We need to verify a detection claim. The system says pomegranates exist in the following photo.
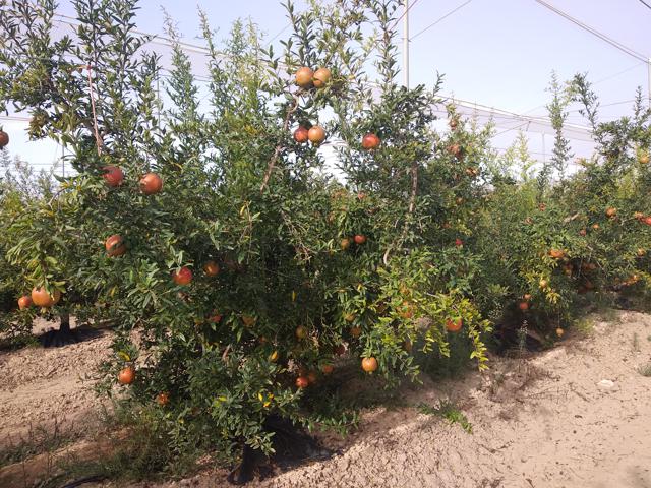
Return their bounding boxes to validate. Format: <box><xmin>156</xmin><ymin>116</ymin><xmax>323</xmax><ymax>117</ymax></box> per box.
<box><xmin>606</xmin><ymin>207</ymin><xmax>617</xmax><ymax>218</ymax></box>
<box><xmin>106</xmin><ymin>234</ymin><xmax>125</xmax><ymax>257</ymax></box>
<box><xmin>103</xmin><ymin>166</ymin><xmax>123</xmax><ymax>187</ymax></box>
<box><xmin>639</xmin><ymin>157</ymin><xmax>648</xmax><ymax>164</ymax></box>
<box><xmin>554</xmin><ymin>326</ymin><xmax>565</xmax><ymax>339</ymax></box>
<box><xmin>550</xmin><ymin>248</ymin><xmax>563</xmax><ymax>259</ymax></box>
<box><xmin>445</xmin><ymin>318</ymin><xmax>462</xmax><ymax>333</ymax></box>
<box><xmin>307</xmin><ymin>372</ymin><xmax>318</xmax><ymax>384</ymax></box>
<box><xmin>294</xmin><ymin>374</ymin><xmax>308</xmax><ymax>391</ymax></box>
<box><xmin>203</xmin><ymin>259</ymin><xmax>221</xmax><ymax>278</ymax></box>
<box><xmin>362</xmin><ymin>134</ymin><xmax>380</xmax><ymax>150</ymax></box>
<box><xmin>322</xmin><ymin>364</ymin><xmax>335</xmax><ymax>376</ymax></box>
<box><xmin>449</xmin><ymin>118</ymin><xmax>459</xmax><ymax>131</ymax></box>
<box><xmin>349</xmin><ymin>327</ymin><xmax>361</xmax><ymax>337</ymax></box>
<box><xmin>295</xmin><ymin>325</ymin><xmax>307</xmax><ymax>342</ymax></box>
<box><xmin>16</xmin><ymin>296</ymin><xmax>33</xmax><ymax>309</ymax></box>
<box><xmin>137</xmin><ymin>171</ymin><xmax>165</xmax><ymax>196</ymax></box>
<box><xmin>293</xmin><ymin>126</ymin><xmax>309</xmax><ymax>143</ymax></box>
<box><xmin>117</xmin><ymin>366</ymin><xmax>135</xmax><ymax>384</ymax></box>
<box><xmin>339</xmin><ymin>237</ymin><xmax>350</xmax><ymax>250</ymax></box>
<box><xmin>520</xmin><ymin>301</ymin><xmax>530</xmax><ymax>311</ymax></box>
<box><xmin>295</xmin><ymin>66</ymin><xmax>314</xmax><ymax>88</ymax></box>
<box><xmin>641</xmin><ymin>218</ymin><xmax>651</xmax><ymax>226</ymax></box>
<box><xmin>360</xmin><ymin>357</ymin><xmax>378</xmax><ymax>377</ymax></box>
<box><xmin>173</xmin><ymin>266</ymin><xmax>193</xmax><ymax>286</ymax></box>
<box><xmin>155</xmin><ymin>392</ymin><xmax>170</xmax><ymax>408</ymax></box>
<box><xmin>31</xmin><ymin>286</ymin><xmax>61</xmax><ymax>313</ymax></box>
<box><xmin>352</xmin><ymin>233</ymin><xmax>367</xmax><ymax>247</ymax></box>
<box><xmin>311</xmin><ymin>68</ymin><xmax>333</xmax><ymax>88</ymax></box>
<box><xmin>0</xmin><ymin>129</ymin><xmax>9</xmax><ymax>150</ymax></box>
<box><xmin>307</xmin><ymin>125</ymin><xmax>325</xmax><ymax>147</ymax></box>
